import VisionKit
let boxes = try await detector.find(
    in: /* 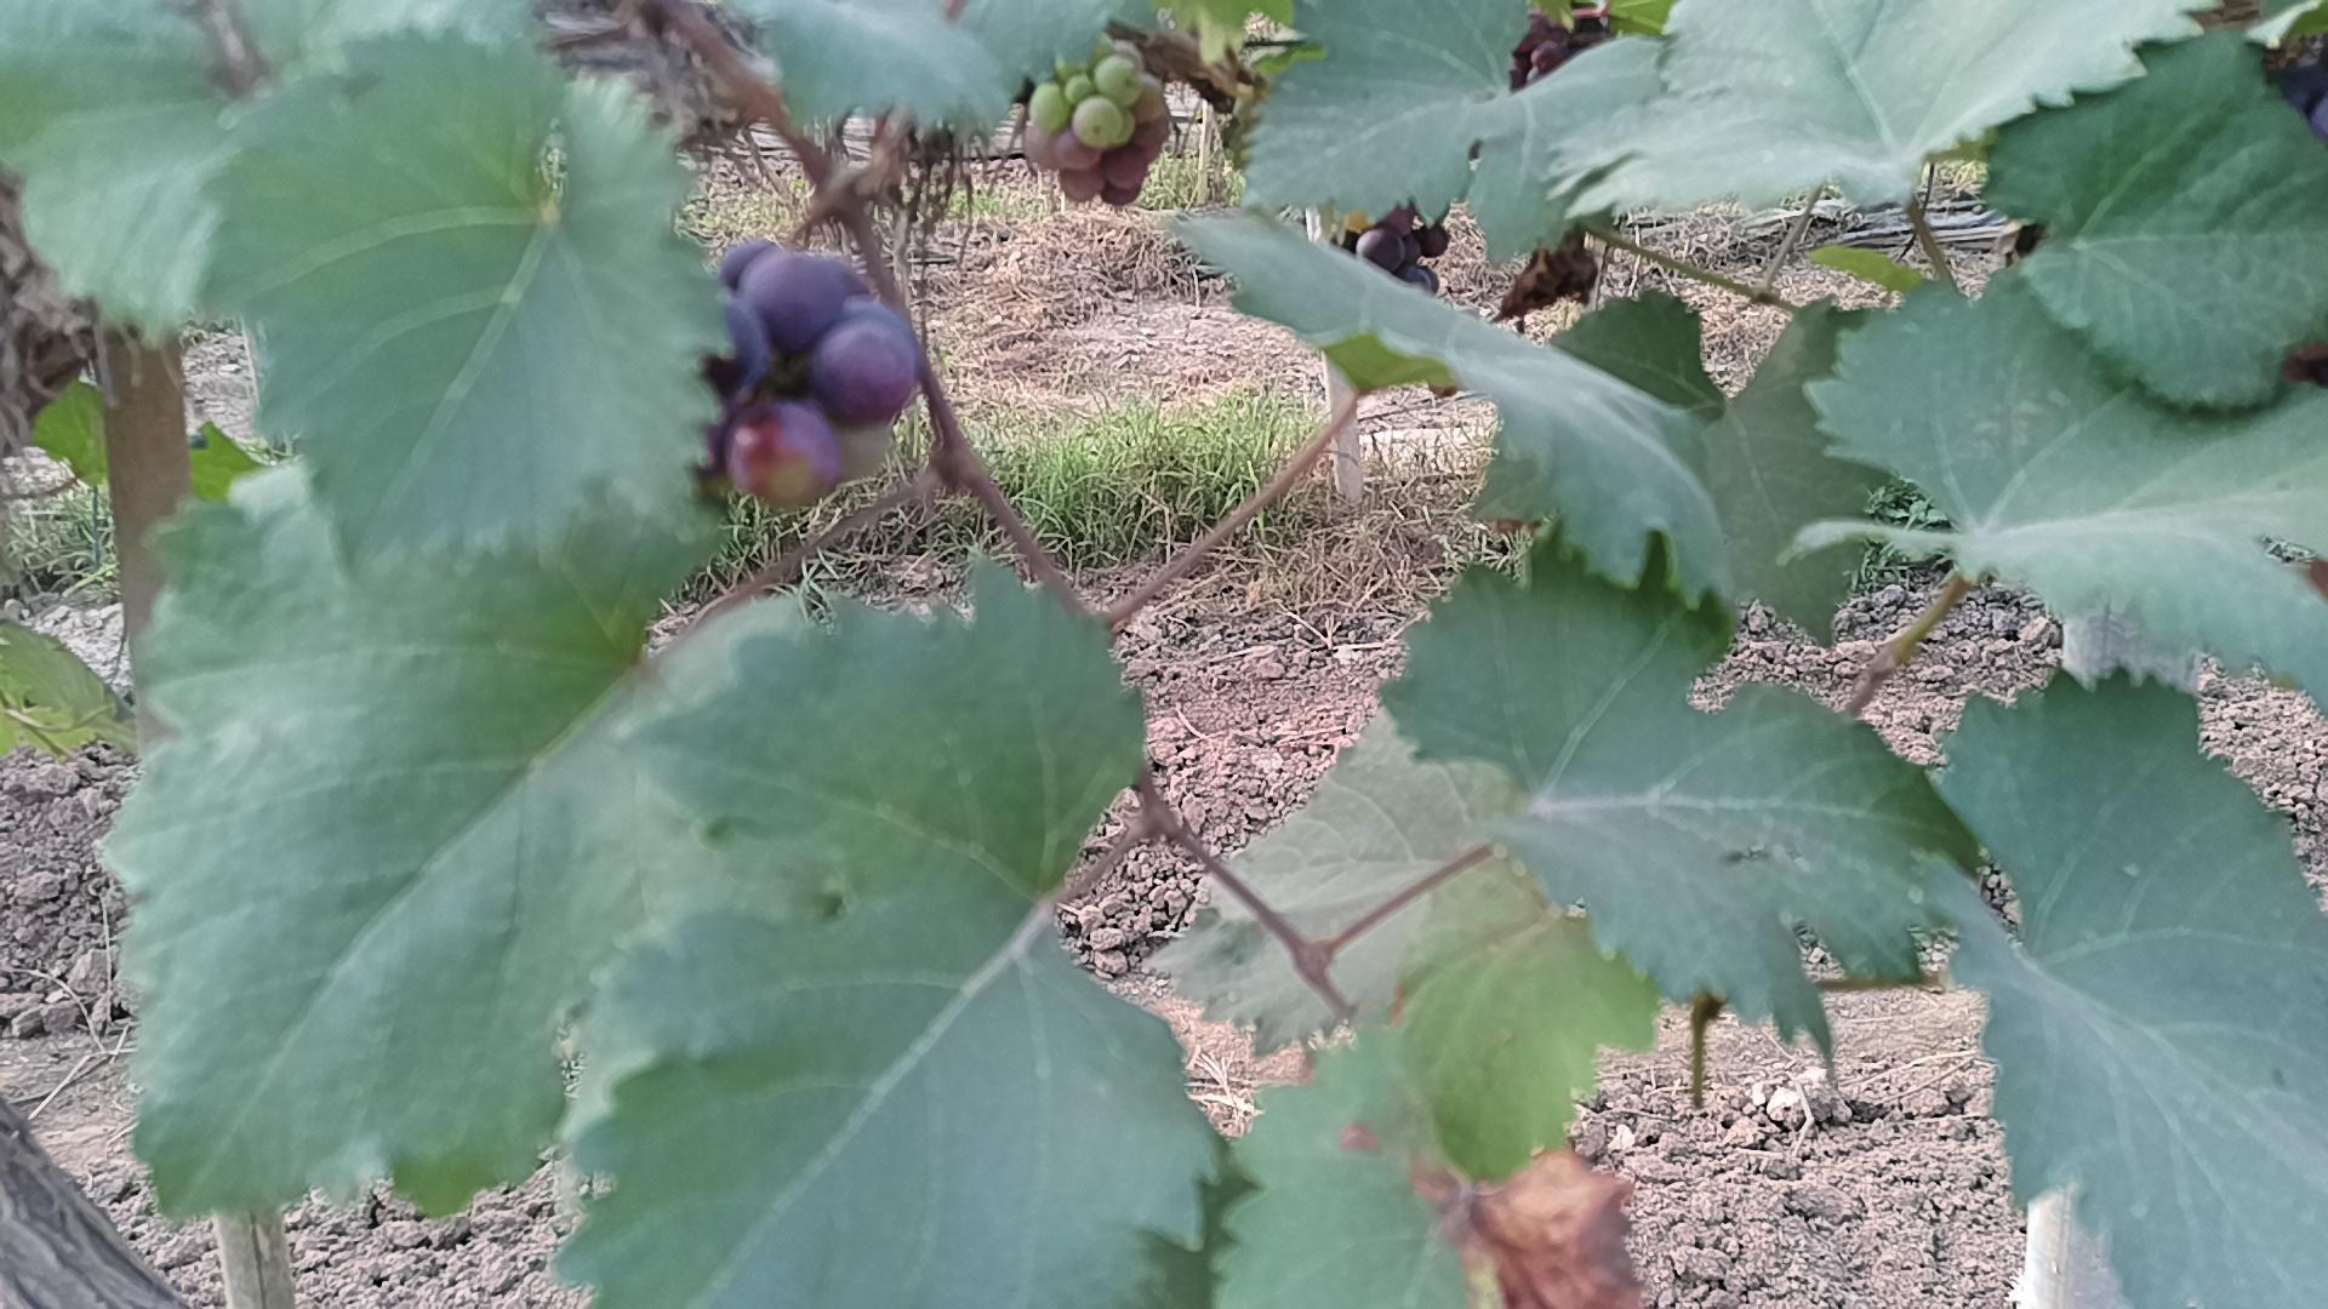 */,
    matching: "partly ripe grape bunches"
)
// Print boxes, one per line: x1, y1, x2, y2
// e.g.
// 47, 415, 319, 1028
696, 239, 931, 509
1508, 0, 1673, 91
1342, 204, 1451, 293
1018, 25, 1171, 206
